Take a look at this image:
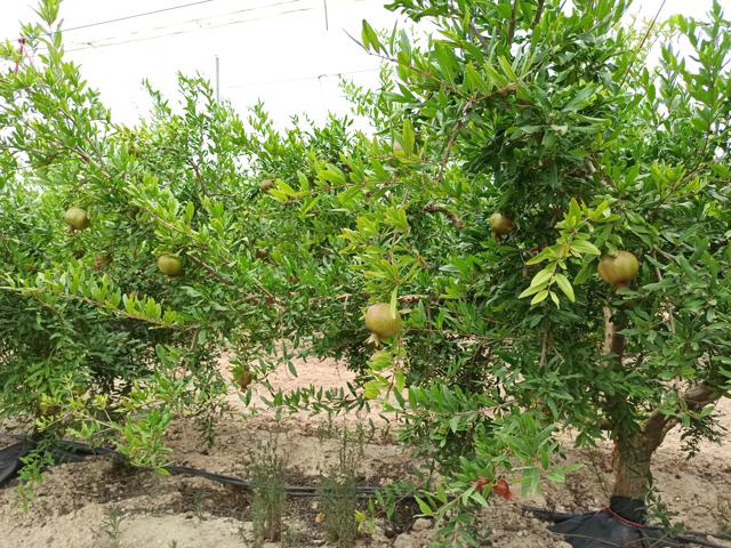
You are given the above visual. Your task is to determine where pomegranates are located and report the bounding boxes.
[236,371,251,393]
[488,212,514,242]
[63,207,88,235]
[156,253,183,275]
[259,179,273,190]
[362,303,400,349]
[597,250,638,293]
